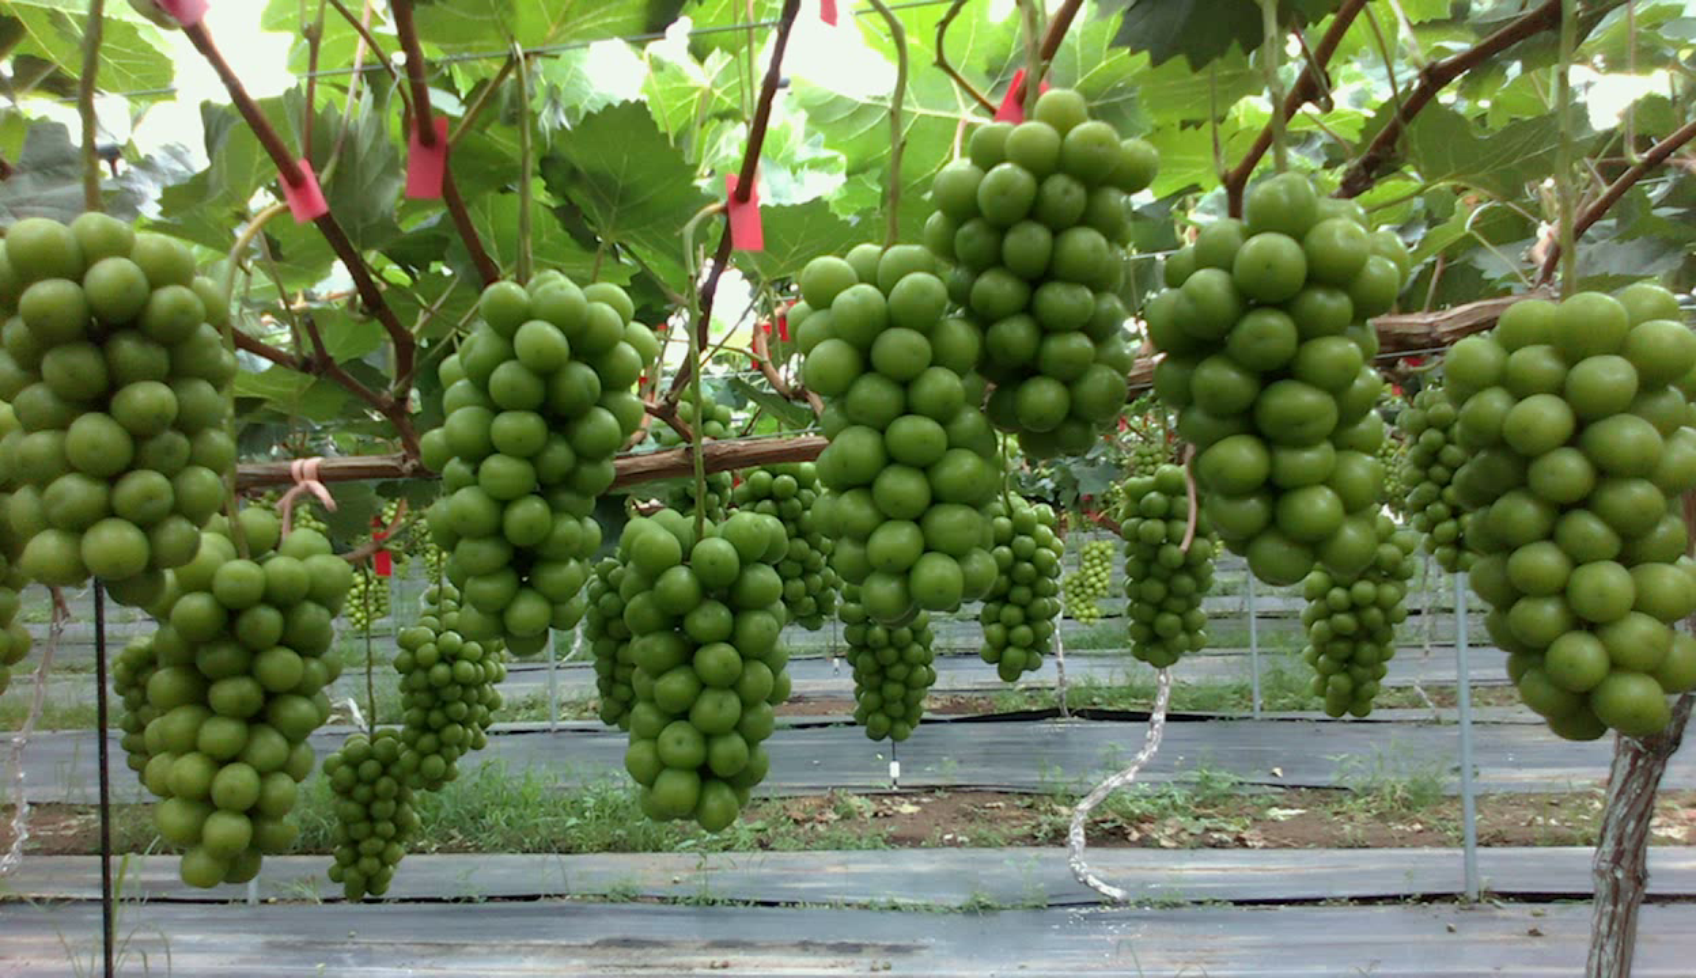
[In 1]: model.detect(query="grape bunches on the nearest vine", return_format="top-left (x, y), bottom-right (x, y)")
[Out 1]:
top-left (1144, 173), bottom-right (1411, 590)
top-left (785, 243), bottom-right (1003, 630)
top-left (419, 269), bottom-right (662, 657)
top-left (923, 88), bottom-right (1161, 460)
top-left (1442, 283), bottom-right (1695, 743)
top-left (618, 508), bottom-right (791, 835)
top-left (143, 507), bottom-right (353, 890)
top-left (1, 212), bottom-right (236, 610)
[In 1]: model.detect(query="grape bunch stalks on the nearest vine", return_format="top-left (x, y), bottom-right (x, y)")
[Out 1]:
top-left (682, 201), bottom-right (728, 542)
top-left (1015, 1), bottom-right (1041, 121)
top-left (870, 1), bottom-right (909, 258)
top-left (222, 202), bottom-right (288, 558)
top-left (1262, 0), bottom-right (1287, 175)
top-left (510, 43), bottom-right (534, 288)
top-left (1556, 0), bottom-right (1578, 299)
top-left (76, 1), bottom-right (106, 212)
